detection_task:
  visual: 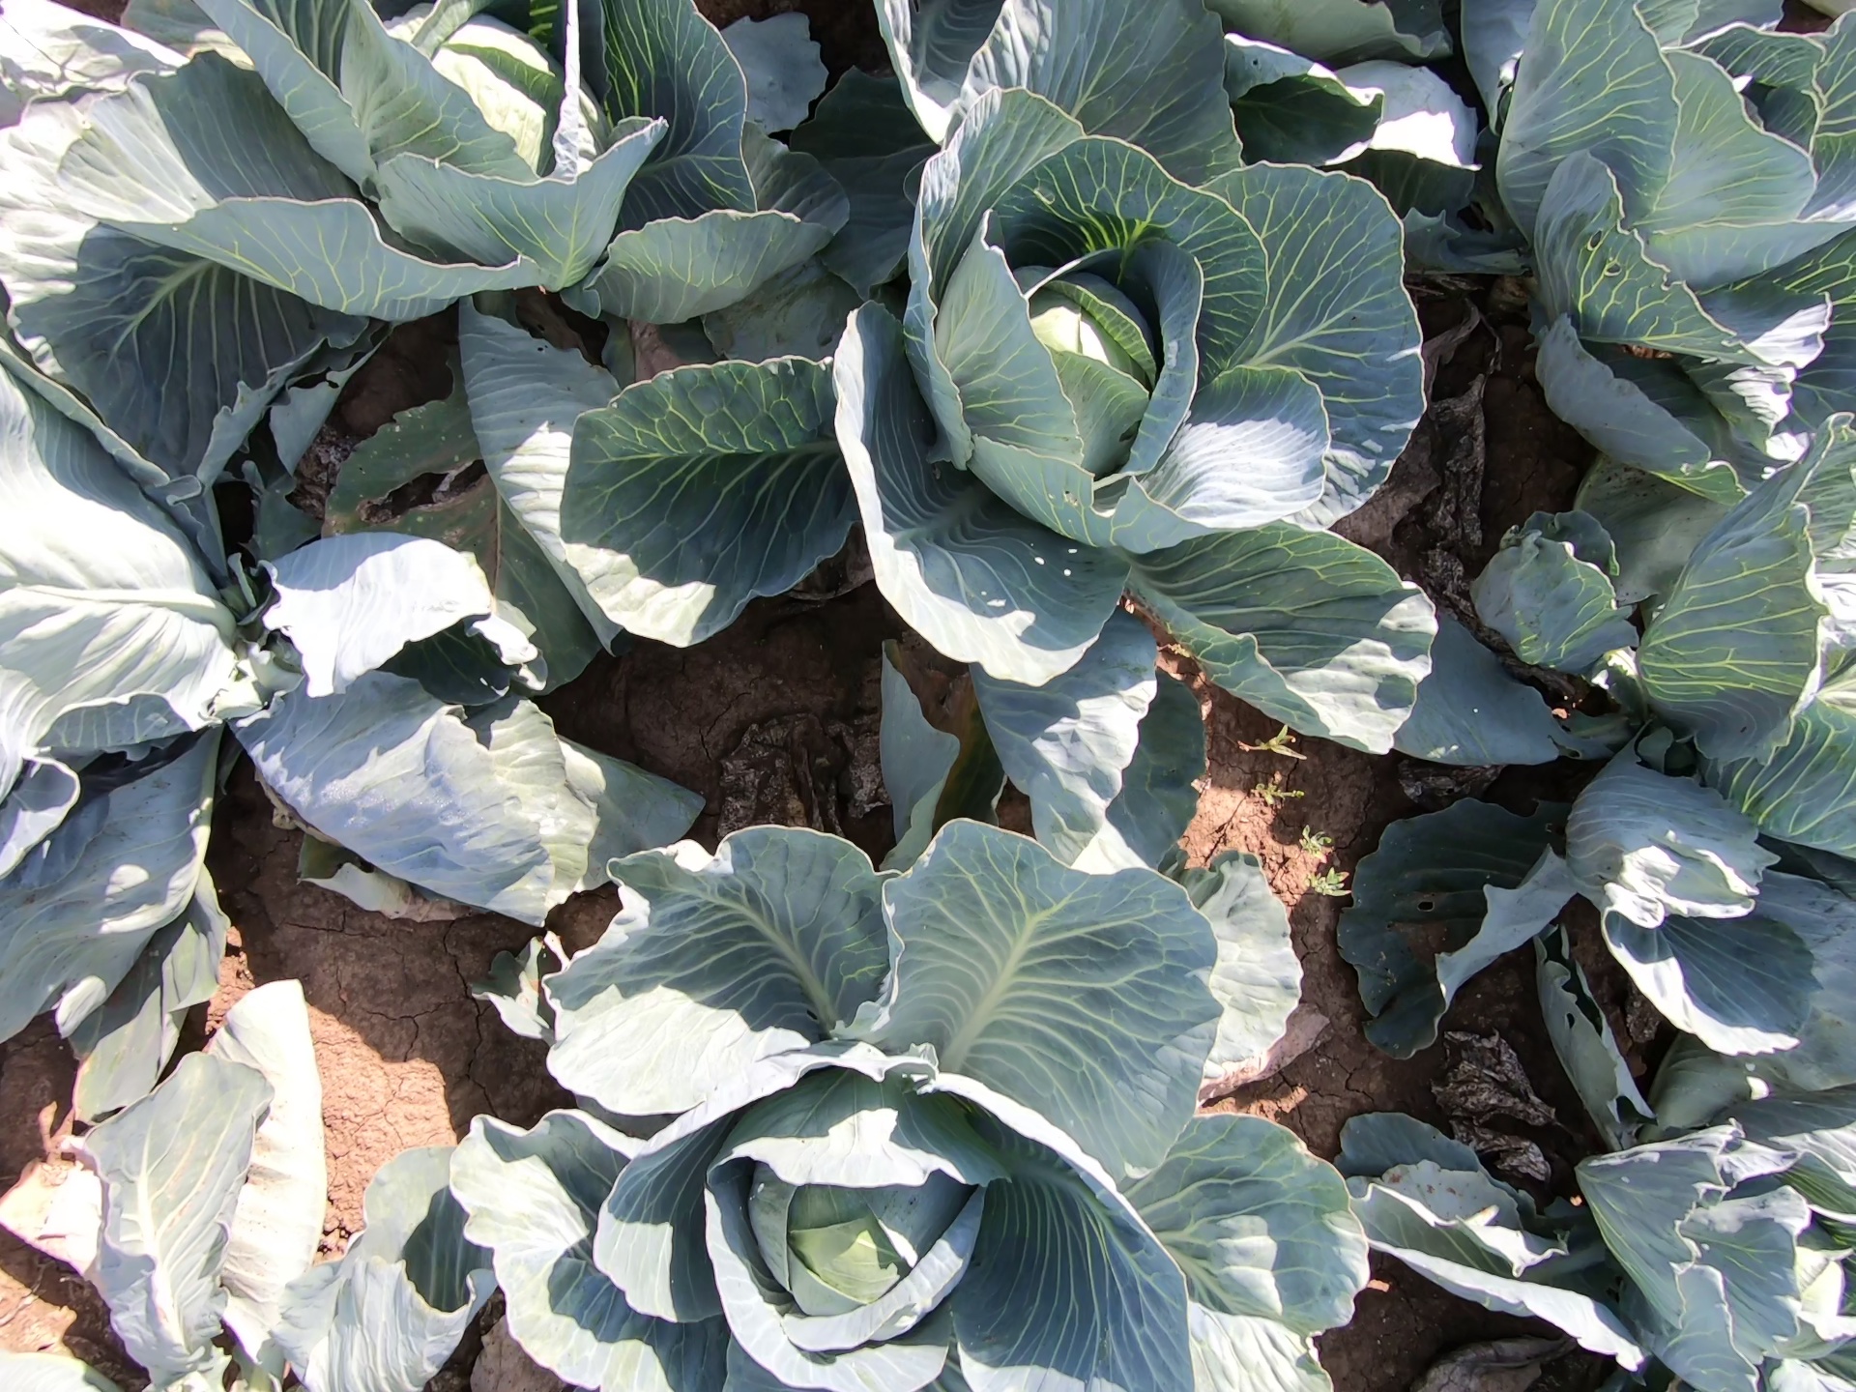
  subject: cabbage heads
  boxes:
[1741,1223,1847,1355]
[362,11,594,247]
[755,1081,975,1332]
[1605,87,1753,249]
[970,268,1155,464]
